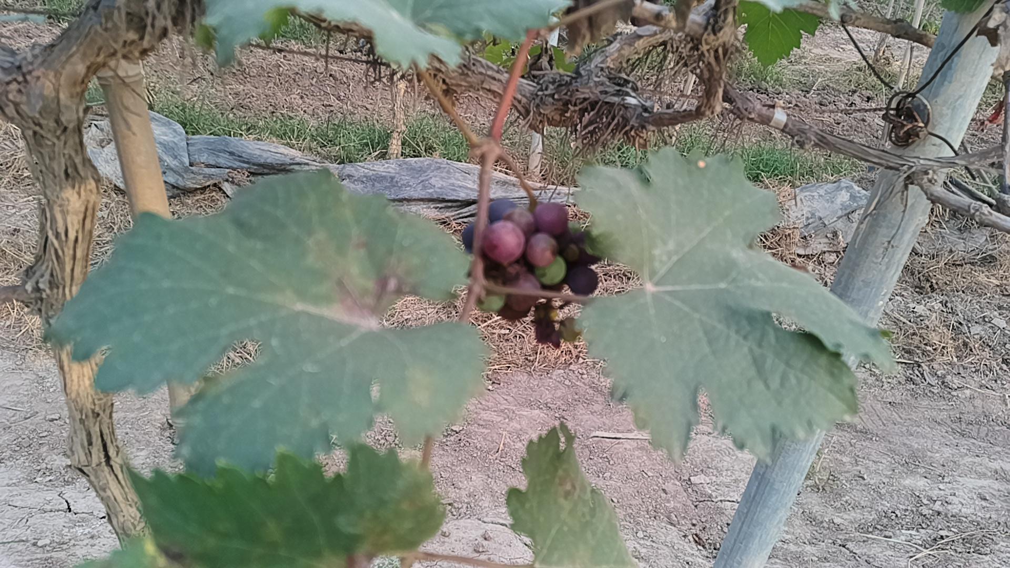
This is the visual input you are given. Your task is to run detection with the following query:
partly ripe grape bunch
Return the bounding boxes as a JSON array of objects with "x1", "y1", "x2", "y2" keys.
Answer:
[{"x1": 461, "y1": 199, "x2": 600, "y2": 347}]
